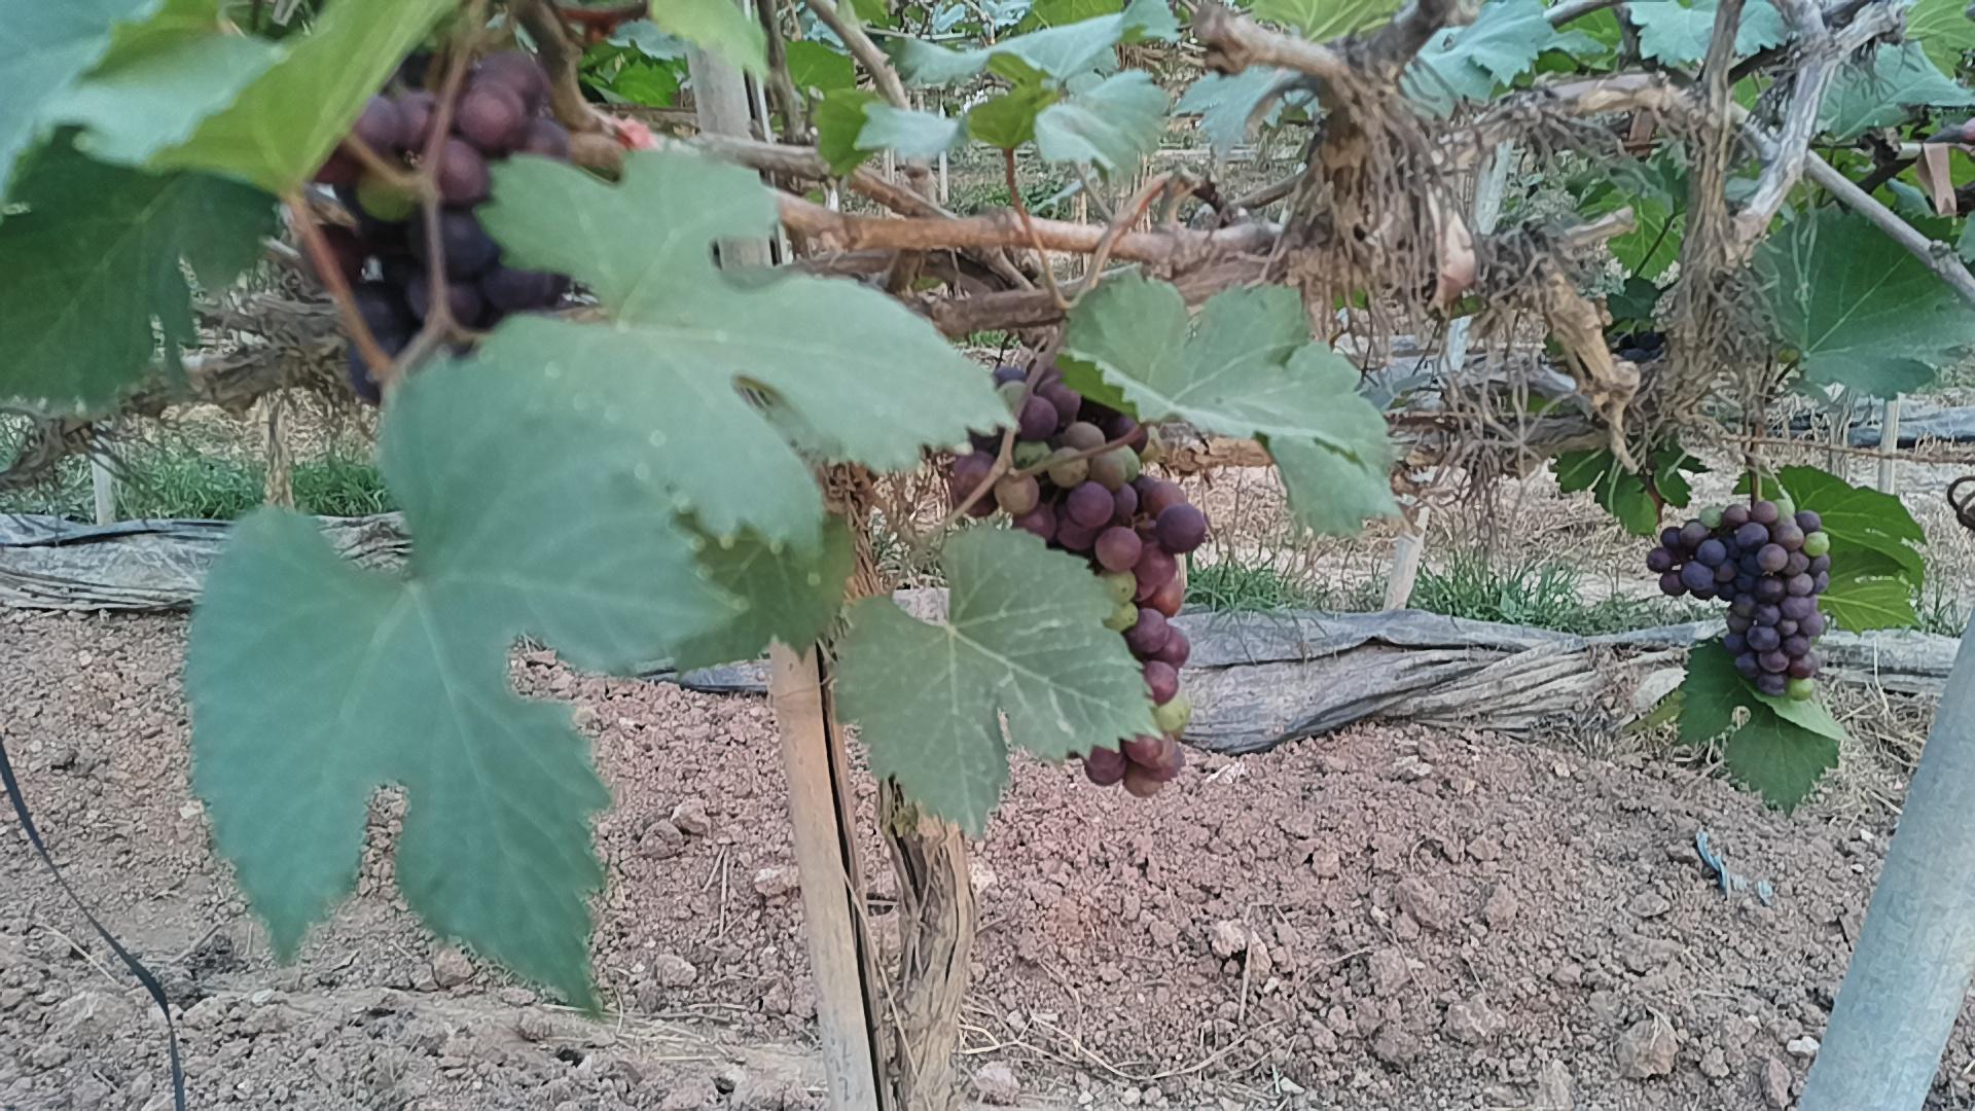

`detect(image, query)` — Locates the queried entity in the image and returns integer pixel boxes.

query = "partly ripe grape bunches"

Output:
[953,367,1209,797]
[1647,501,1831,697]
[300,46,567,414]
